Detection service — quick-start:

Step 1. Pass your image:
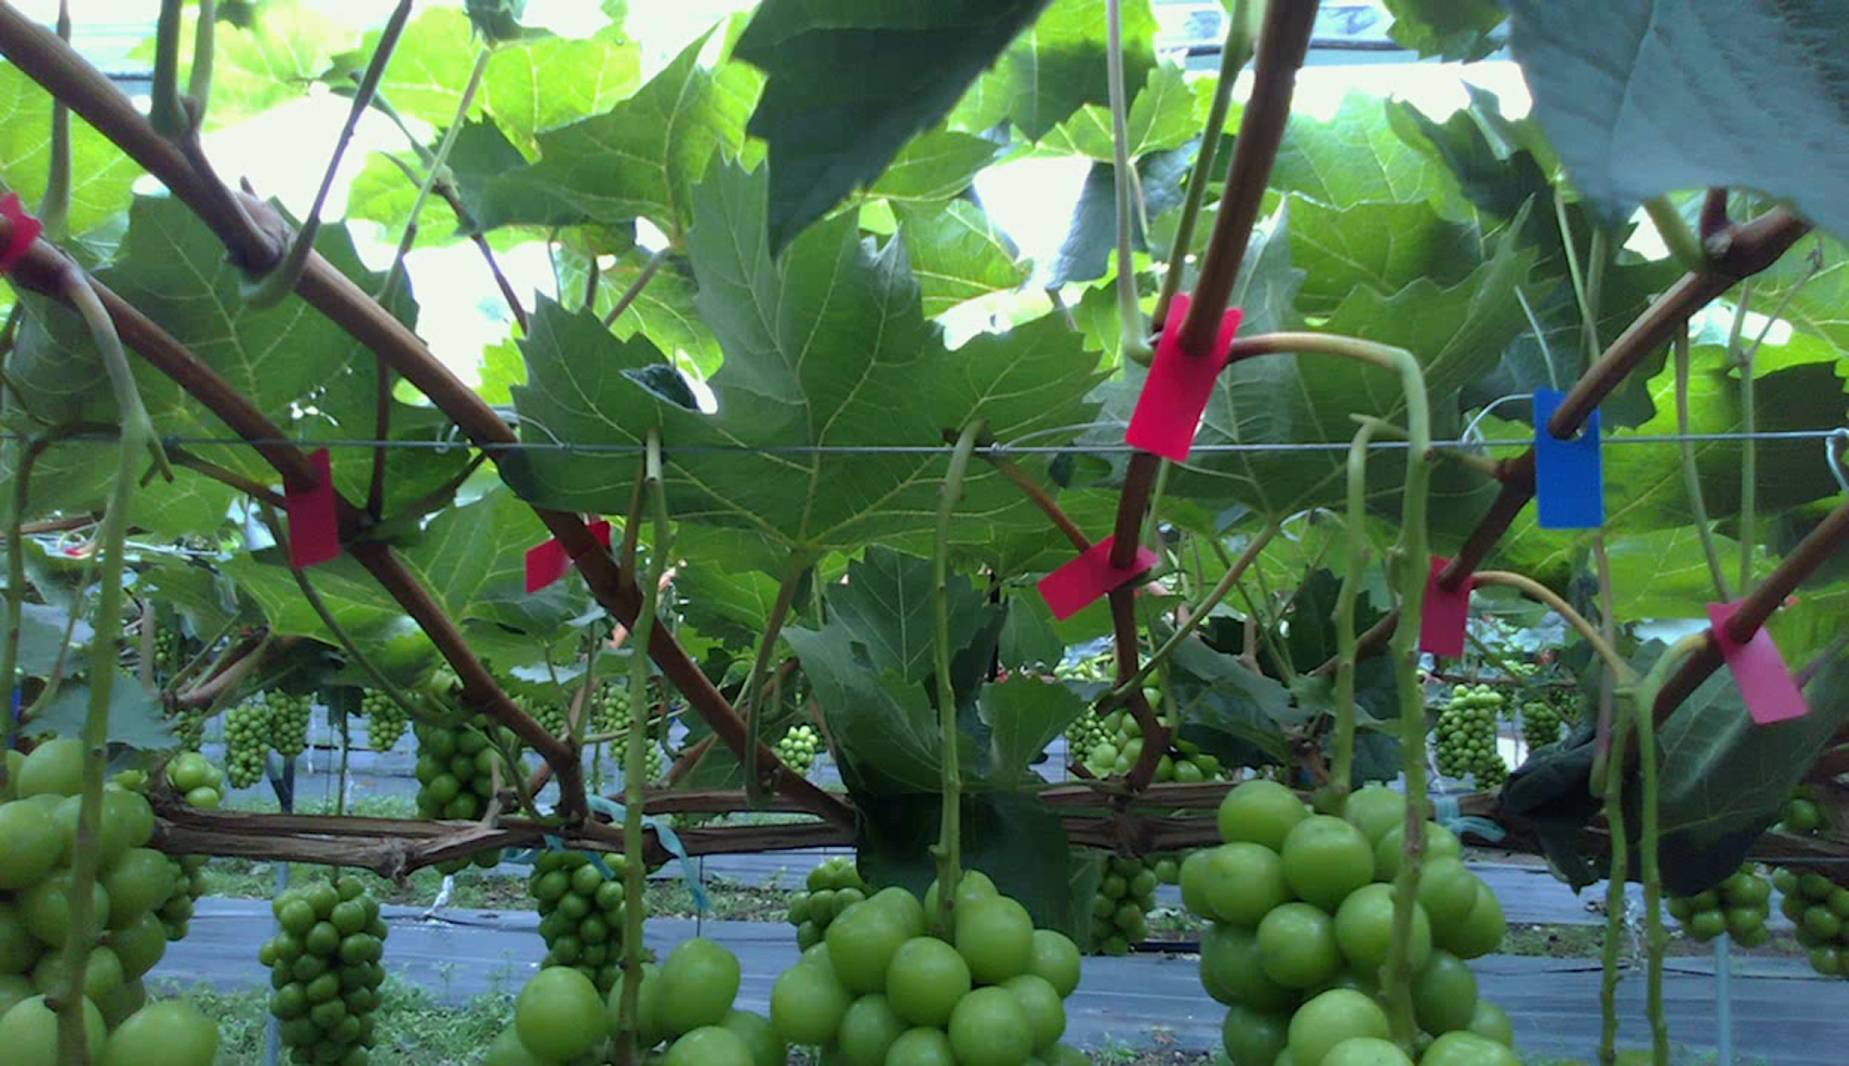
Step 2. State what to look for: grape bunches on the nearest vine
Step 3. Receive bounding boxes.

[1176,777,1507,1065]
[1,737,173,1036]
[1274,989,1523,1065]
[477,937,788,1065]
[769,869,1095,1065]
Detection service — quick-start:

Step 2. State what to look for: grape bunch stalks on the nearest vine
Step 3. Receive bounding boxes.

[15,238,150,792]
[0,416,111,795]
[1311,418,1403,819]
[929,422,981,943]
[1225,332,1430,1057]
[613,429,670,1065]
